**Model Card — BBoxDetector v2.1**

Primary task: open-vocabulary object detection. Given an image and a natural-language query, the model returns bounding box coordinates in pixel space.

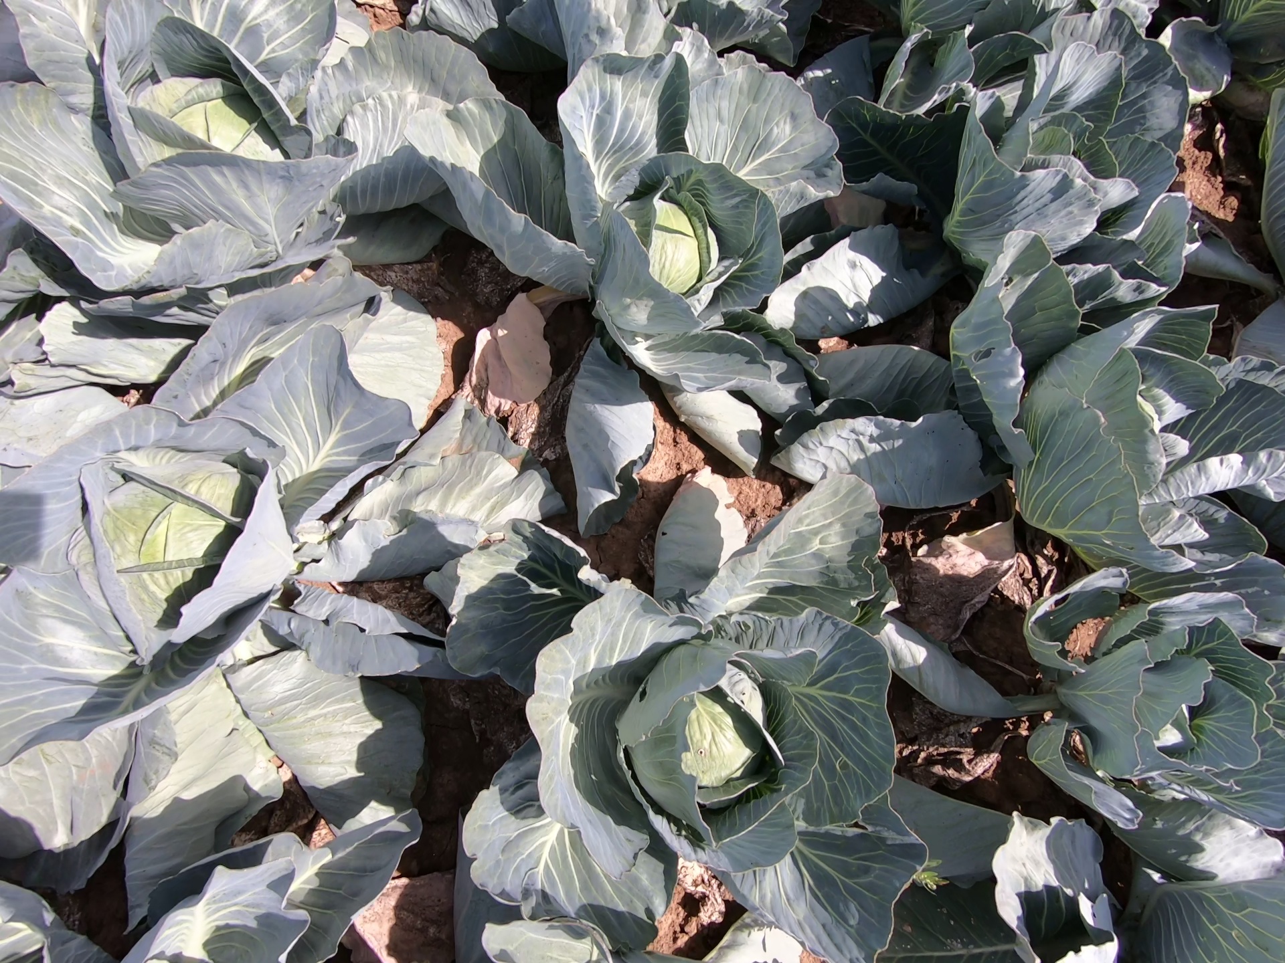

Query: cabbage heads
[1056,377,1165,477]
[64,461,273,620]
[124,75,304,241]
[599,199,718,312]
[638,649,768,788]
